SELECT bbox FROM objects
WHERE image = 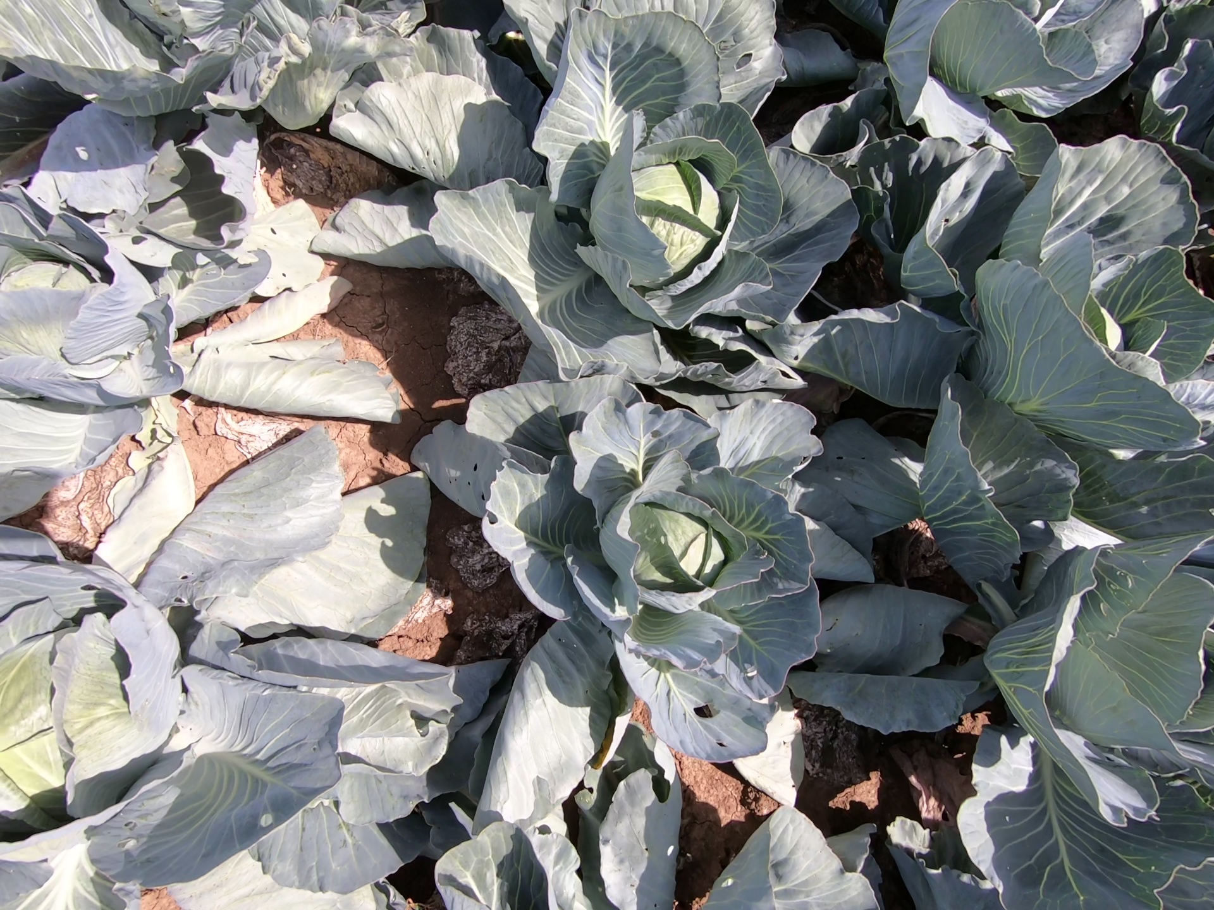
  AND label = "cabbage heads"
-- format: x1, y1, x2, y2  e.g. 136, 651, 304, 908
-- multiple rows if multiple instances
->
595, 159, 723, 287
1020, 296, 1125, 421
3, 626, 169, 823
605, 497, 725, 600
2, 260, 101, 379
